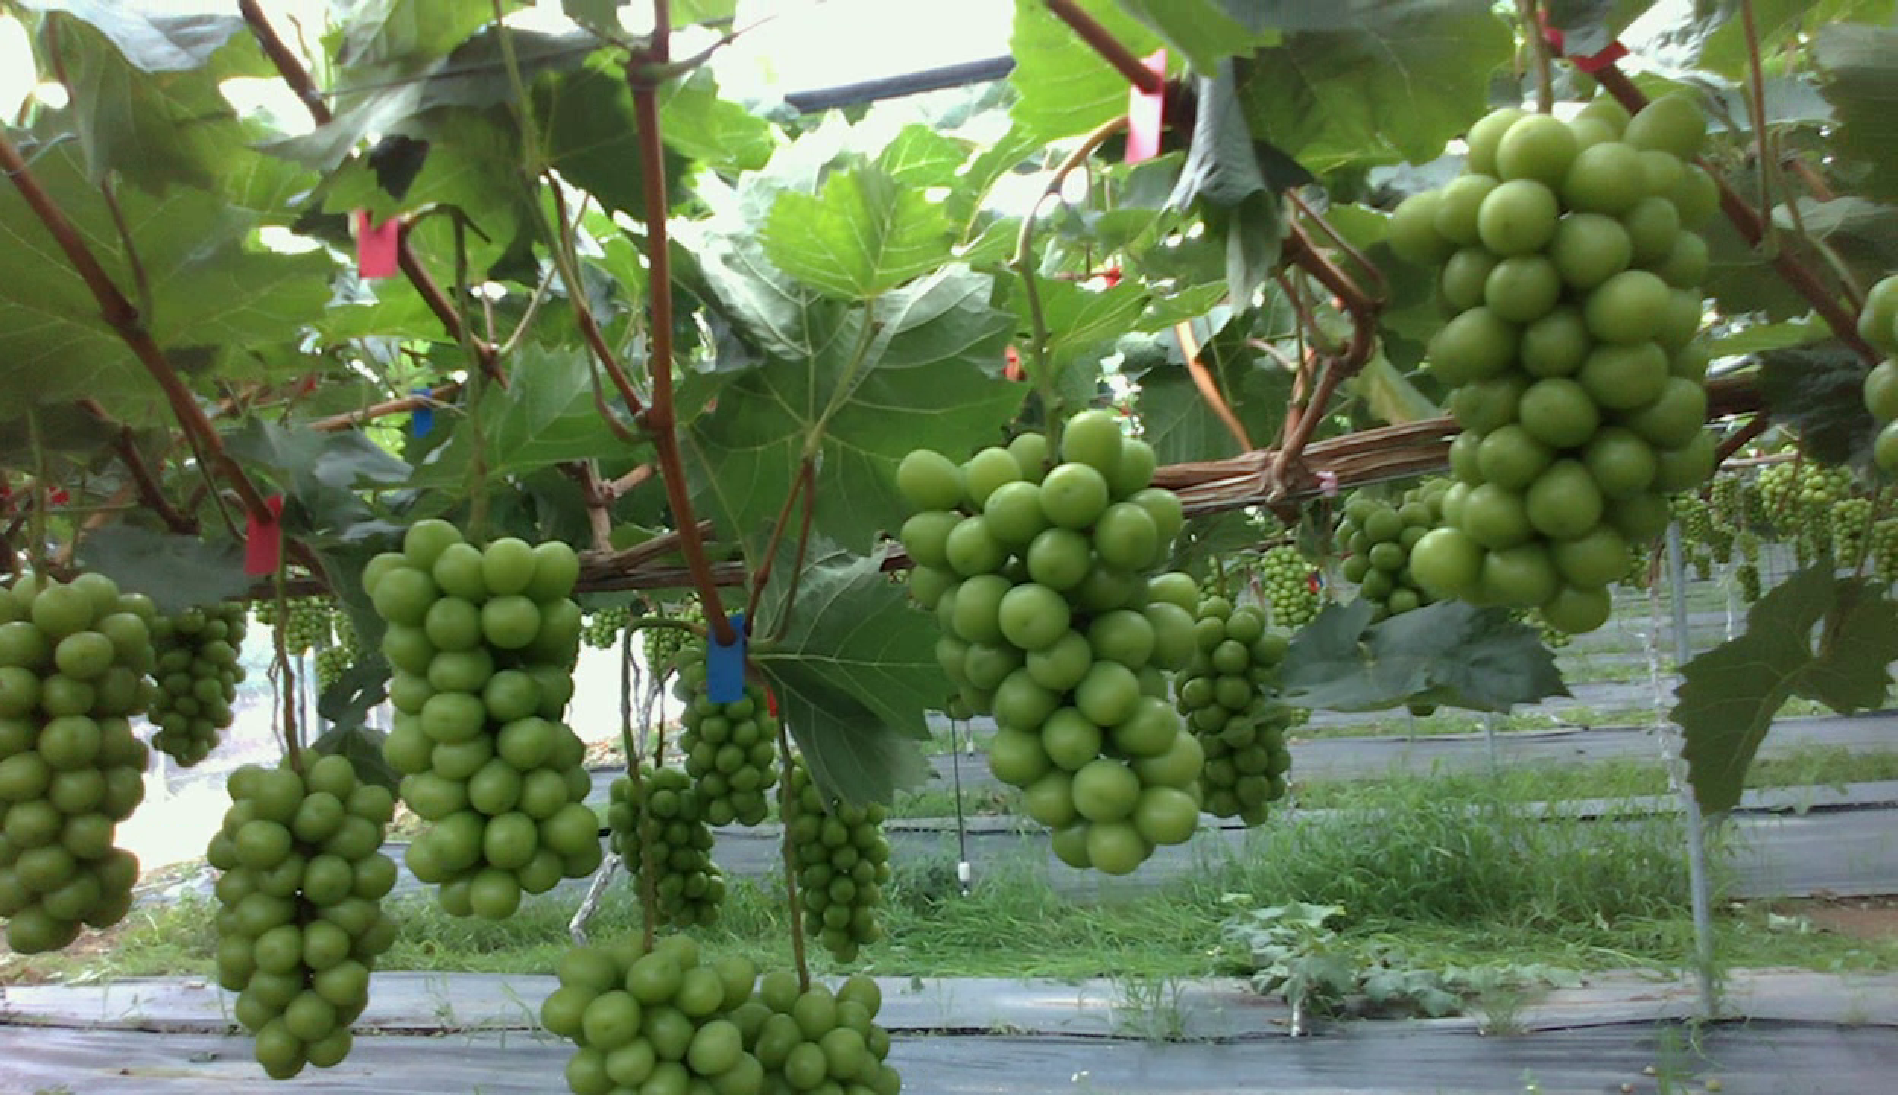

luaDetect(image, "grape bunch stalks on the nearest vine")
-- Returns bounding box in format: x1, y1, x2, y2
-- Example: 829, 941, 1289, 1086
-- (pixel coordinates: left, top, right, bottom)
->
406, 201, 488, 540
275, 557, 300, 768
620, 616, 692, 947
780, 722, 809, 990
1008, 117, 1125, 465
1519, 2, 1554, 108
23, 411, 47, 587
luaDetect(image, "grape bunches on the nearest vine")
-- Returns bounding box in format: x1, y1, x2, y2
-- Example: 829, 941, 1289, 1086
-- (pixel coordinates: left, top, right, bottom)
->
540, 931, 760, 1093
363, 519, 605, 922
2, 572, 155, 952
894, 409, 1203, 876
207, 748, 398, 1078
1382, 93, 1719, 634
742, 972, 903, 1093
